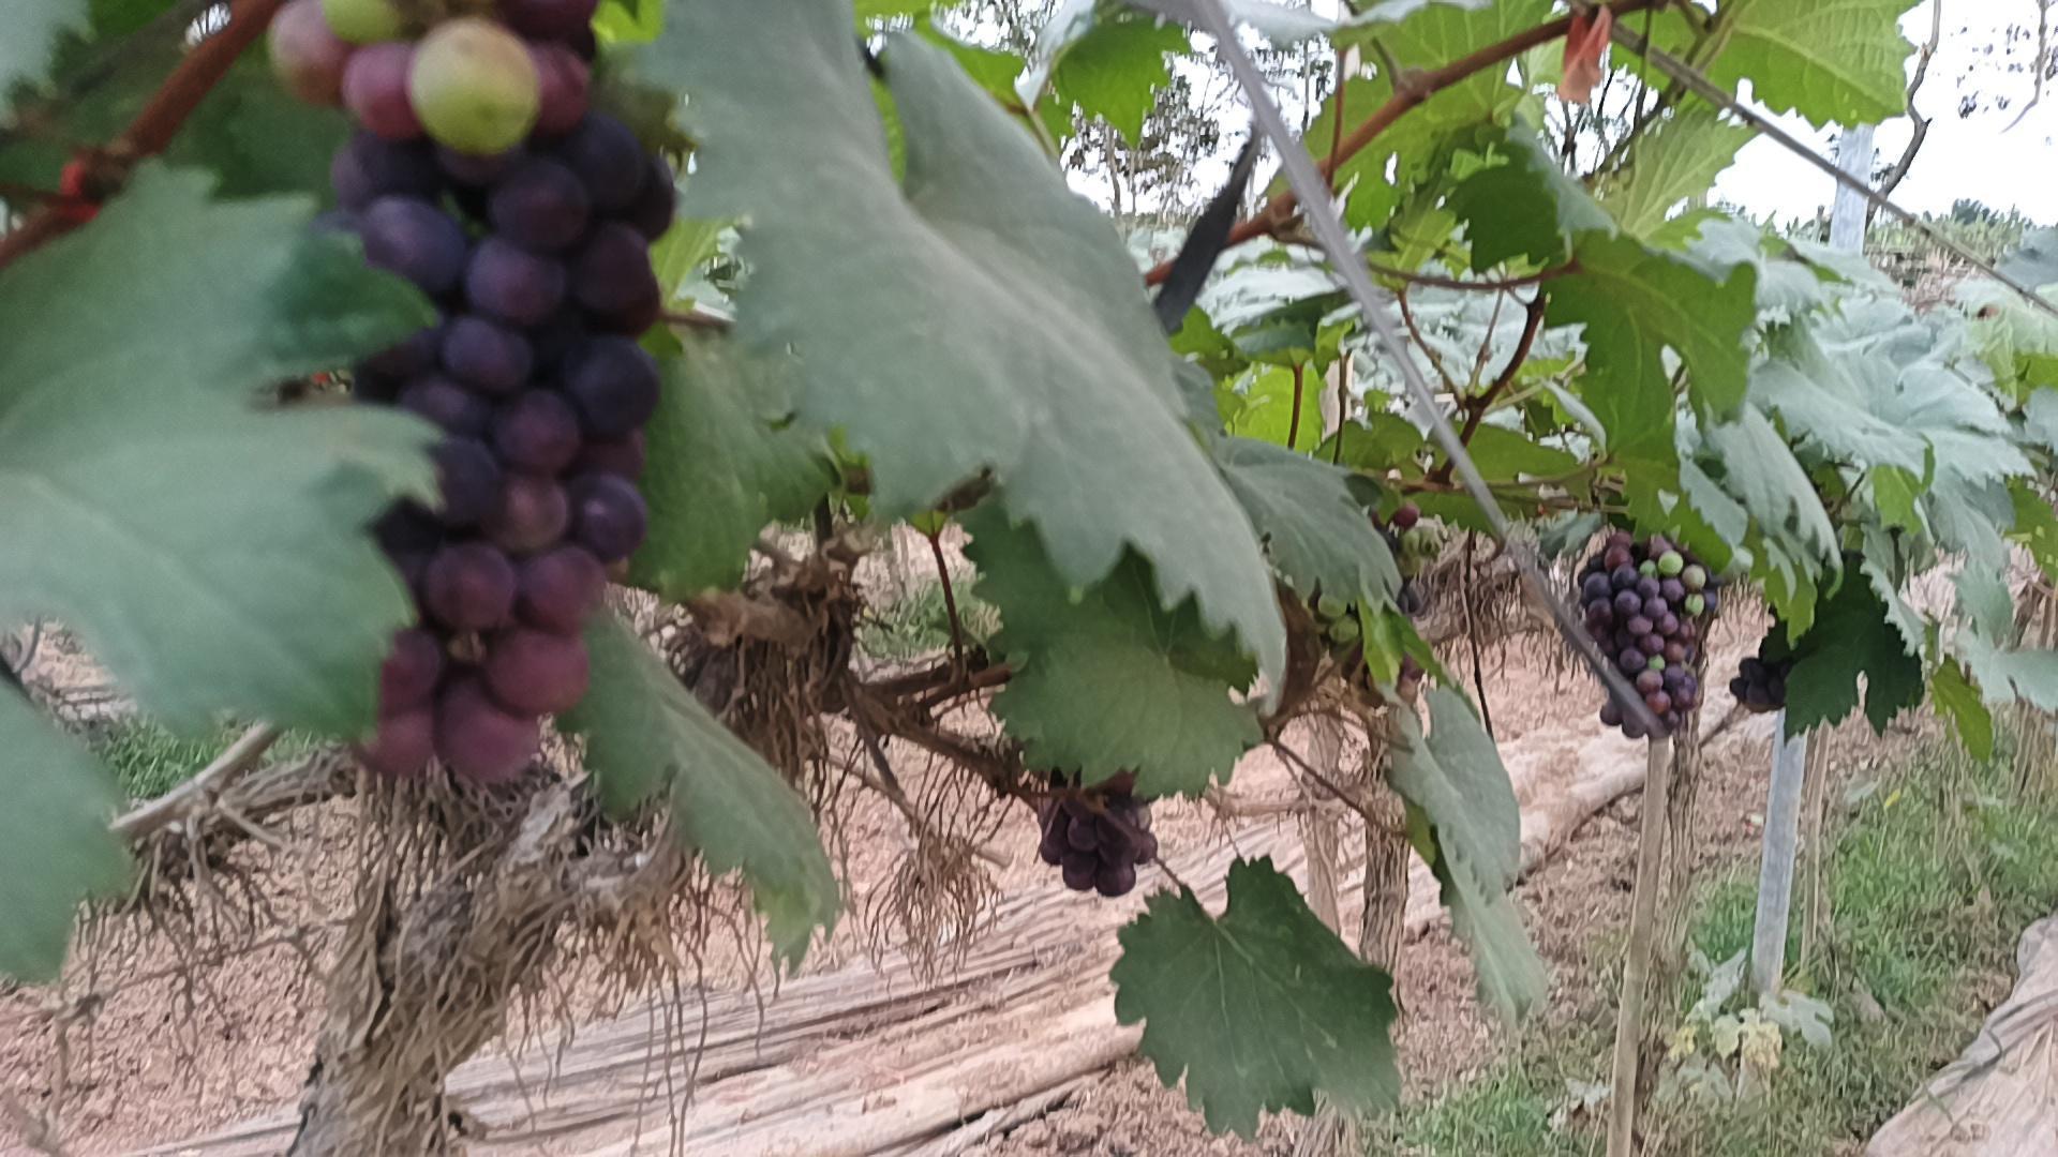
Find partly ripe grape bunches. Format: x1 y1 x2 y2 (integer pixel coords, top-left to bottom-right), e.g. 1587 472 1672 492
269 0 675 781
1578 530 1719 738
1321 506 1444 705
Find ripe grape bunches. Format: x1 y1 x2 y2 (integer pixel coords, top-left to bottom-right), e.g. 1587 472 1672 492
1729 610 1811 711
1038 771 1157 897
